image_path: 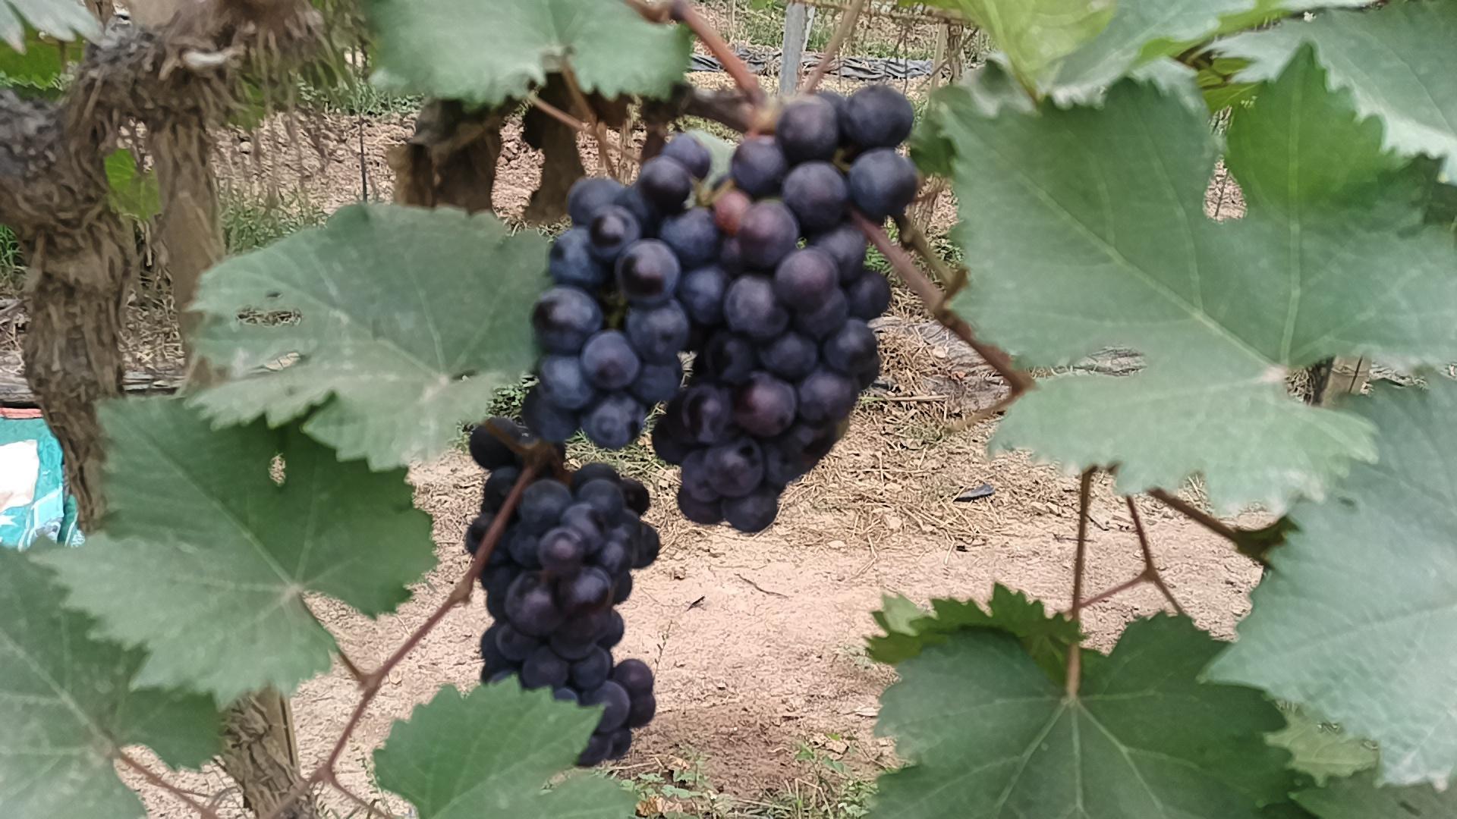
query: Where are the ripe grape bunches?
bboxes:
[521,135,733,449]
[653,85,921,532]
[466,417,659,767]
